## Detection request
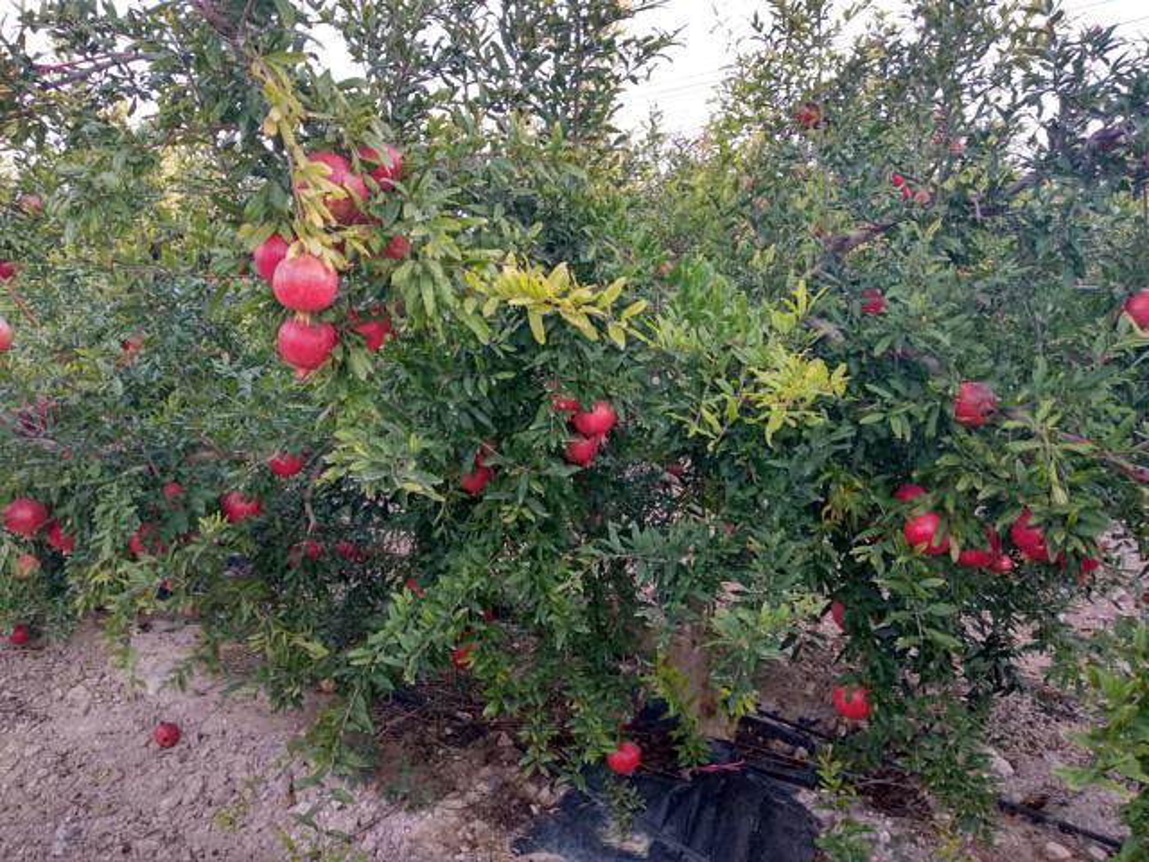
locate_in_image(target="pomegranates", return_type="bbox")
[831,600,847,632]
[573,400,616,447]
[127,523,163,553]
[461,456,488,492]
[162,481,181,499]
[338,542,361,562]
[549,395,582,415]
[1009,506,1047,560]
[0,259,13,282]
[269,453,307,478]
[287,539,320,567]
[862,289,885,316]
[953,381,998,427]
[1059,548,1101,584]
[382,233,406,259]
[307,153,370,226]
[278,316,336,377]
[219,488,260,523]
[833,686,871,722]
[566,431,600,471]
[48,523,75,557]
[9,625,32,646]
[350,312,391,352]
[4,499,48,541]
[18,555,41,571]
[607,740,641,774]
[253,232,291,286]
[892,481,925,503]
[1126,286,1149,330]
[903,510,950,557]
[452,645,472,672]
[0,316,14,354]
[357,144,400,190]
[959,528,1002,566]
[986,546,1014,576]
[271,253,339,329]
